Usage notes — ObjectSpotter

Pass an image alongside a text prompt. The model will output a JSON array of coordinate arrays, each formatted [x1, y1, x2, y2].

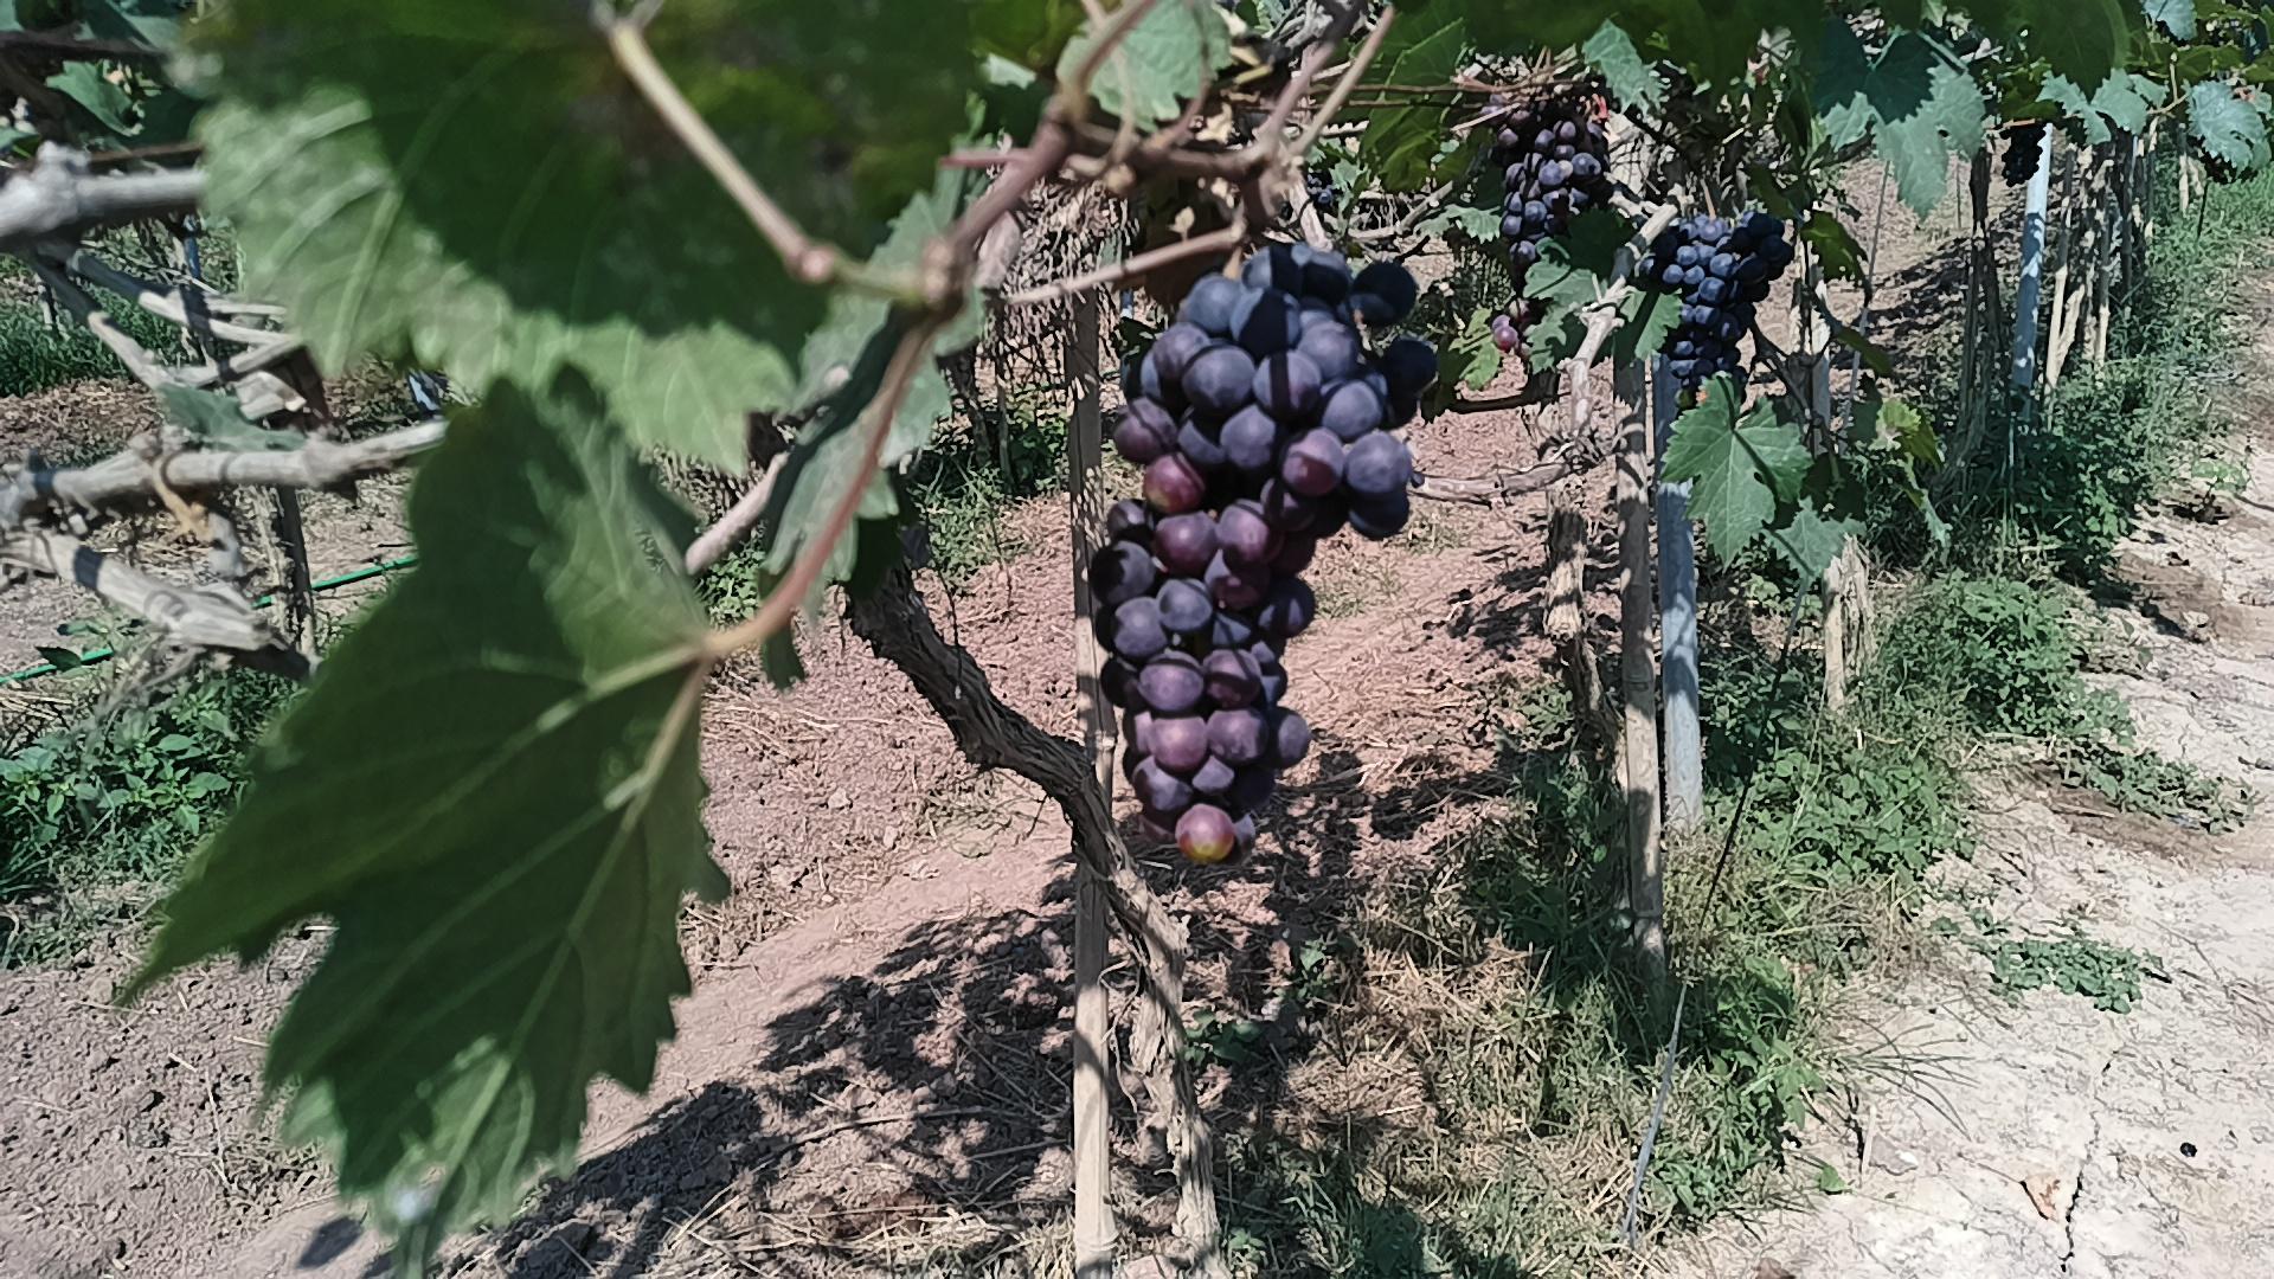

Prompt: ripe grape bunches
[[1638, 211, 1793, 406], [1300, 150, 1344, 224], [1488, 94, 1615, 360], [1999, 122, 2047, 187], [1090, 242, 1437, 860]]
